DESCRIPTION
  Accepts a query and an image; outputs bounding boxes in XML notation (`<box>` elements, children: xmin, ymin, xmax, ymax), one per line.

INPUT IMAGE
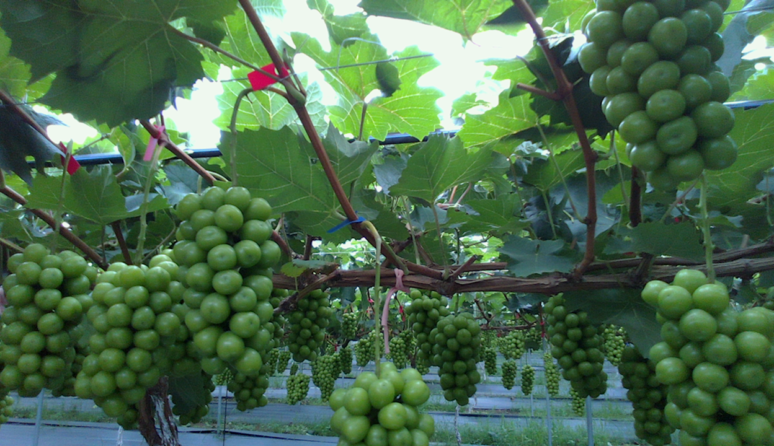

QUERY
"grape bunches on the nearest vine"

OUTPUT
<box><xmin>329</xmin><ymin>362</ymin><xmax>435</xmax><ymax>445</ymax></box>
<box><xmin>641</xmin><ymin>268</ymin><xmax>773</xmax><ymax>445</ymax></box>
<box><xmin>75</xmin><ymin>255</ymin><xmax>186</xmax><ymax>417</ymax></box>
<box><xmin>579</xmin><ymin>0</ymin><xmax>738</xmax><ymax>191</ymax></box>
<box><xmin>1</xmin><ymin>243</ymin><xmax>97</xmax><ymax>397</ymax></box>
<box><xmin>161</xmin><ymin>186</ymin><xmax>280</xmax><ymax>376</ymax></box>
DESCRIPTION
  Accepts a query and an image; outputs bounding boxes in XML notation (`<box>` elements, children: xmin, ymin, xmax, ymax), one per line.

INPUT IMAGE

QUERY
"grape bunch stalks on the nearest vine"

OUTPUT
<box><xmin>48</xmin><ymin>140</ymin><xmax>73</xmax><ymax>256</ymax></box>
<box><xmin>226</xmin><ymin>87</ymin><xmax>252</xmax><ymax>186</ymax></box>
<box><xmin>700</xmin><ymin>170</ymin><xmax>716</xmax><ymax>284</ymax></box>
<box><xmin>360</xmin><ymin>221</ymin><xmax>381</xmax><ymax>379</ymax></box>
<box><xmin>135</xmin><ymin>141</ymin><xmax>167</xmax><ymax>269</ymax></box>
